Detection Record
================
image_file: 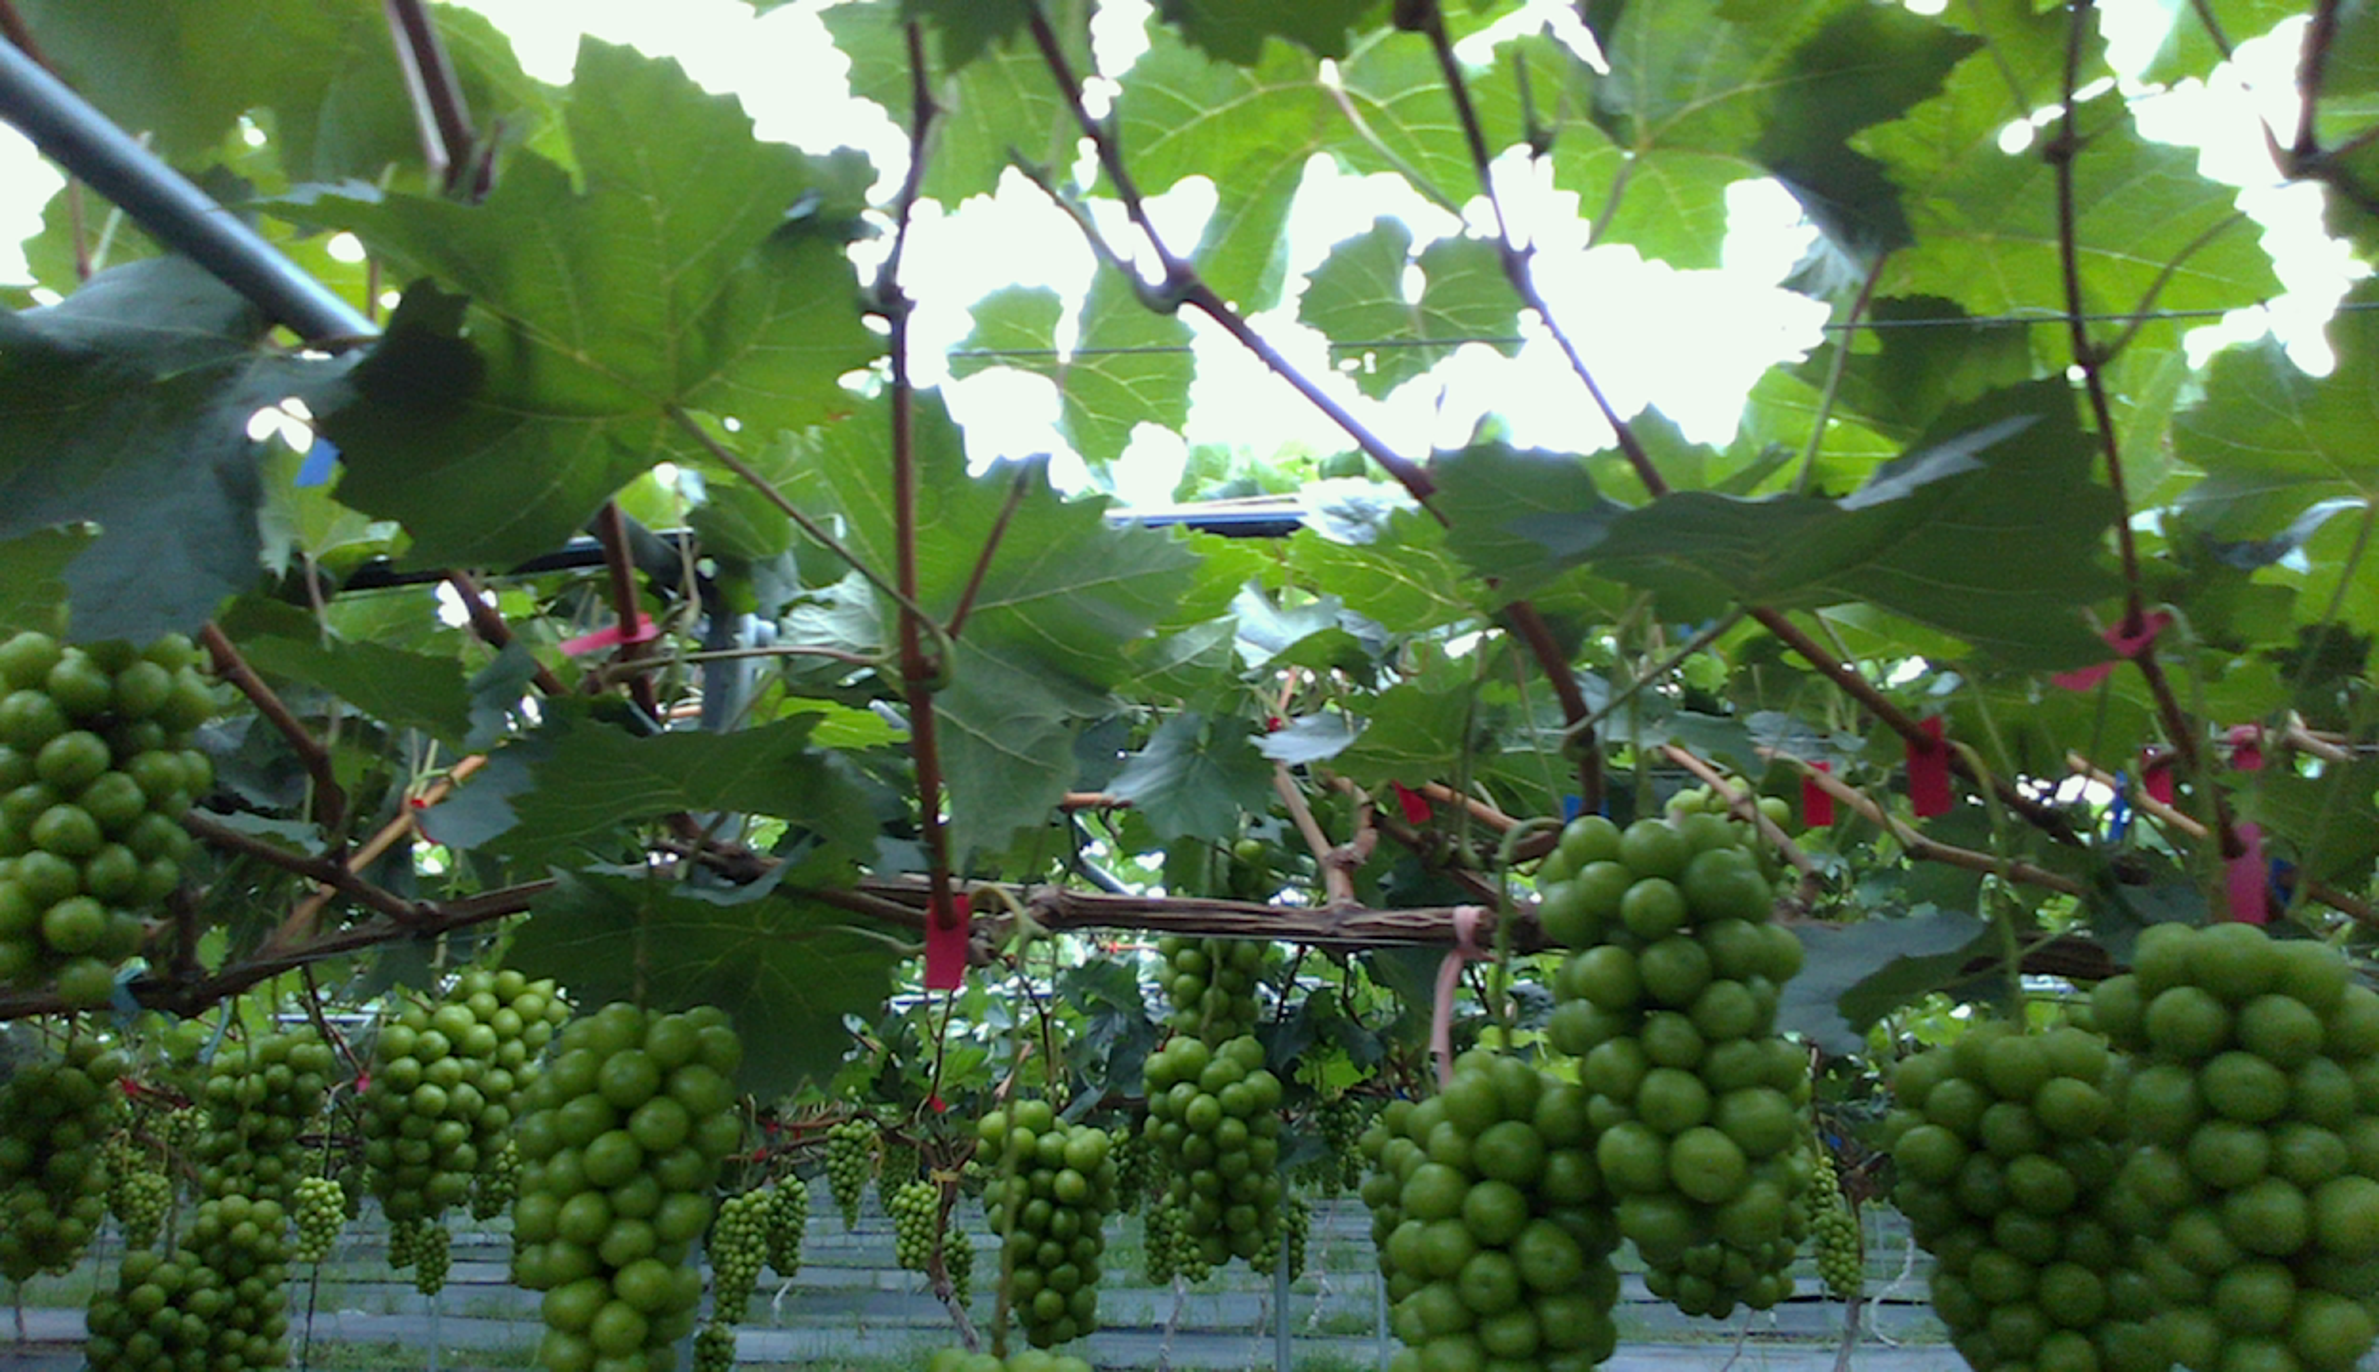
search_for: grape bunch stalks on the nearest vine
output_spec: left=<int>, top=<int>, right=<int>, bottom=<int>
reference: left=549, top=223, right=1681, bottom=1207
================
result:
left=2156, top=602, right=2232, bottom=922
left=972, top=882, right=1033, bottom=1359
left=1626, top=688, right=1655, bottom=819
left=1946, top=732, right=2030, bottom=1033
left=1485, top=816, right=1567, bottom=1058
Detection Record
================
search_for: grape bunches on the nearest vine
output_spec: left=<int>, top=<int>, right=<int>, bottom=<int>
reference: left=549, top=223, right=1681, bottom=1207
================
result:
left=517, top=1000, right=742, bottom=1370
left=926, top=1349, right=1088, bottom=1370
left=1384, top=1048, right=1624, bottom=1370
left=1878, top=1018, right=2167, bottom=1370
left=0, top=631, right=217, bottom=1004
left=2085, top=918, right=2377, bottom=1370
left=1637, top=1199, right=1809, bottom=1319
left=1538, top=808, right=1811, bottom=1258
